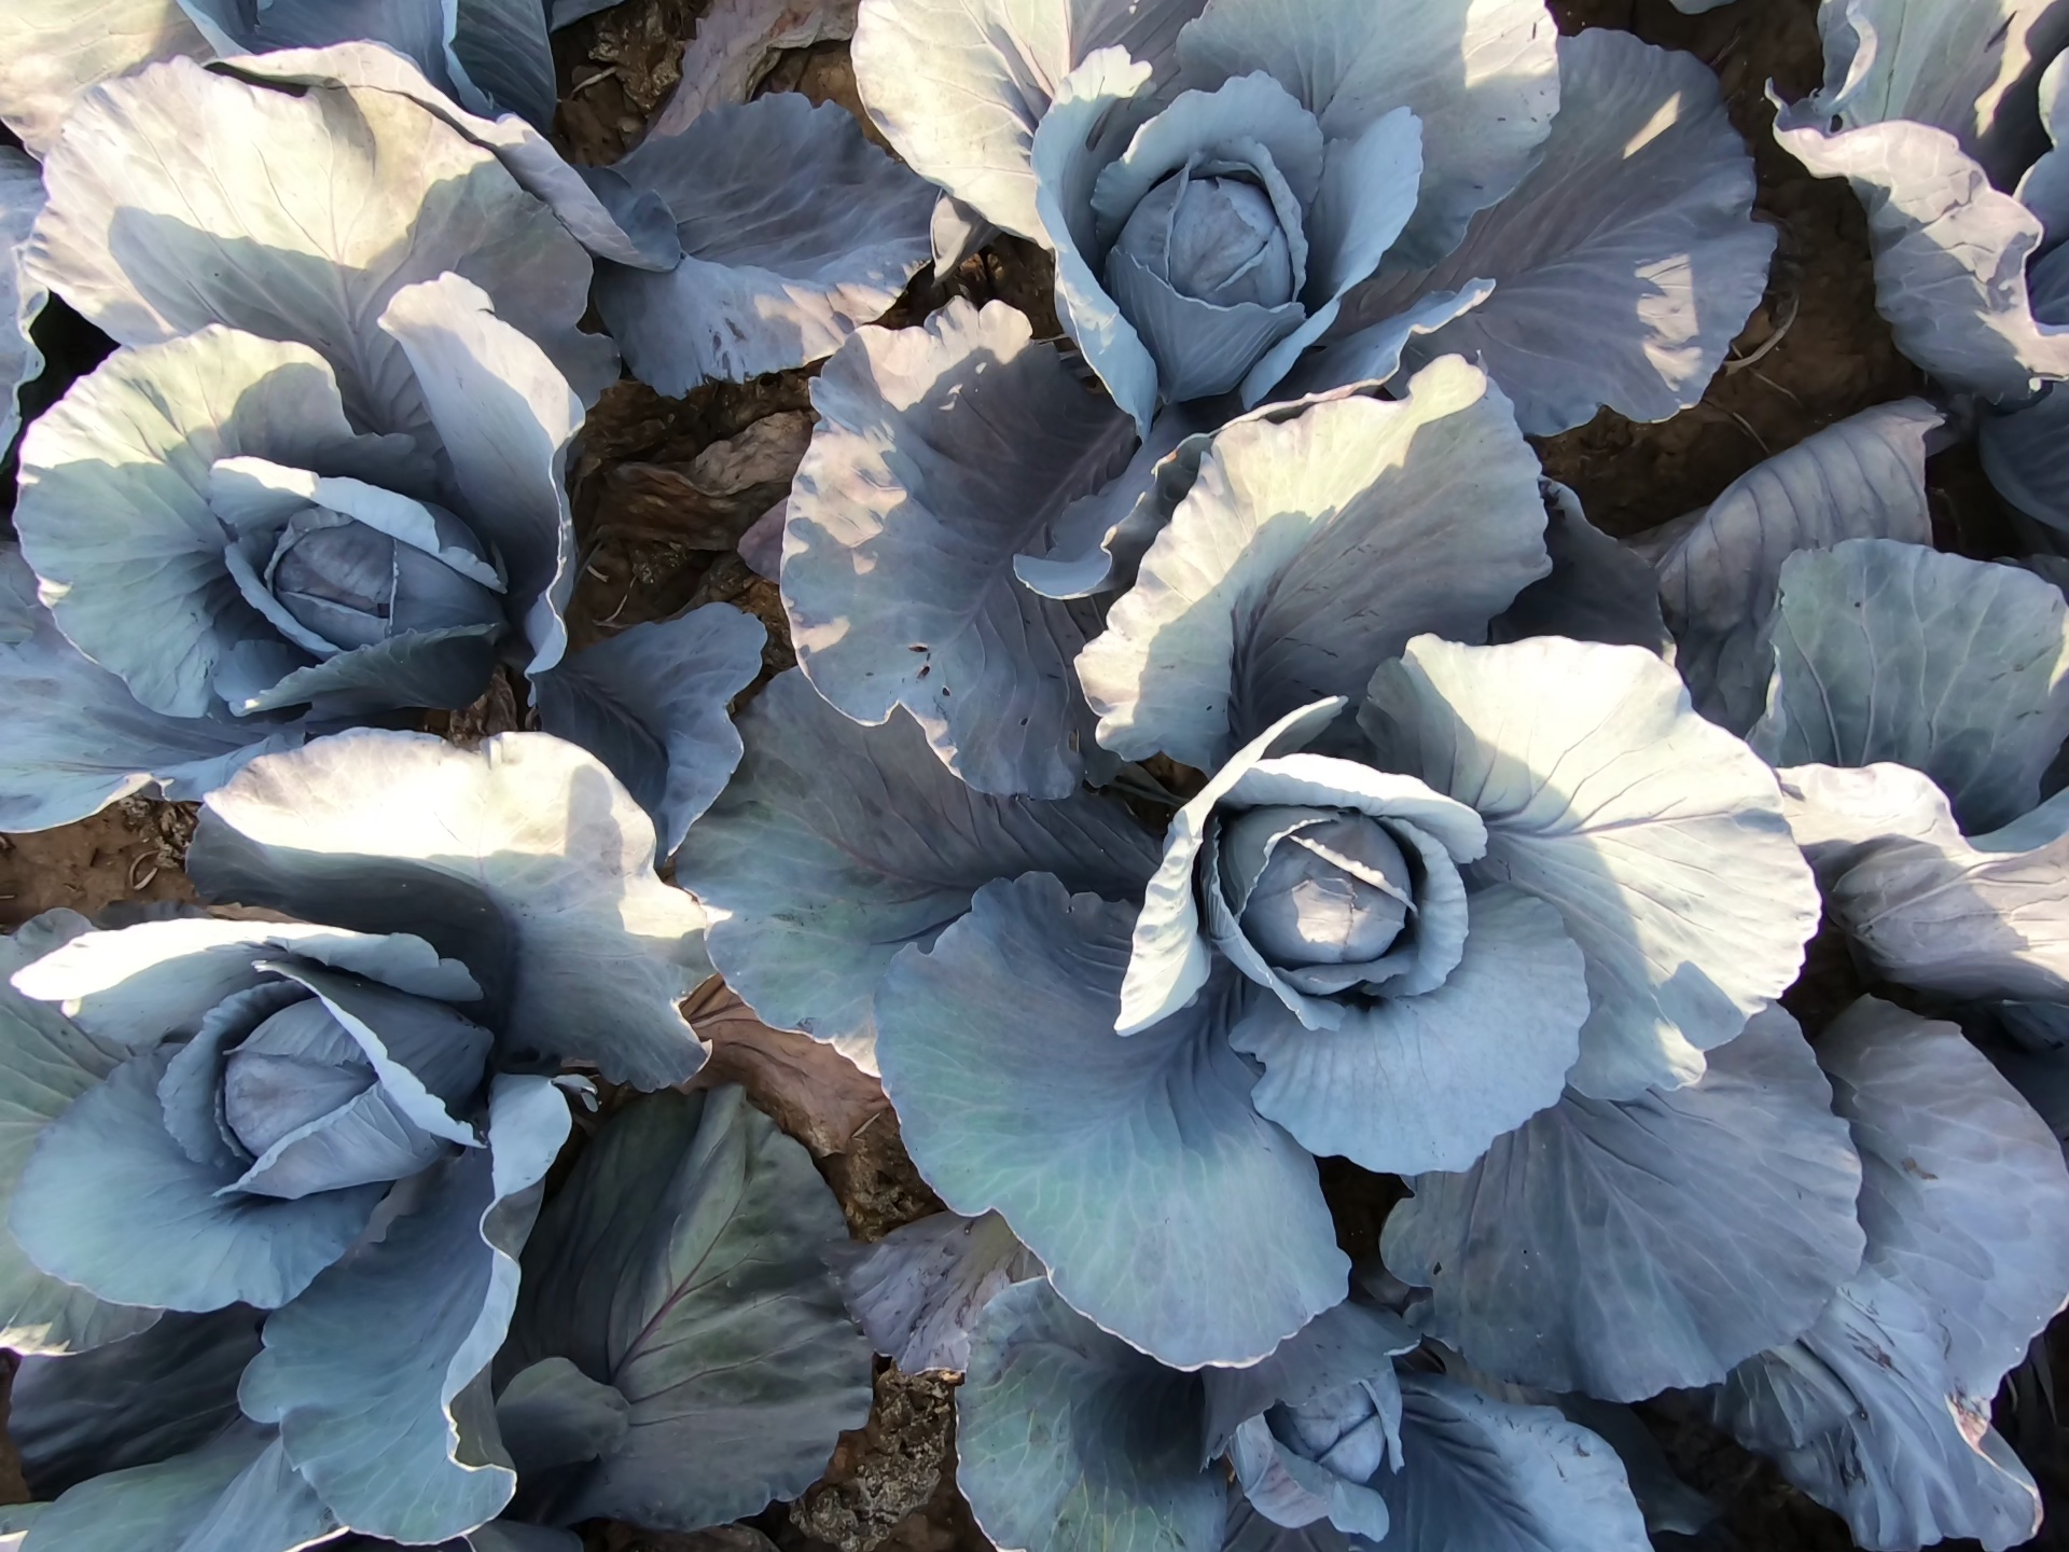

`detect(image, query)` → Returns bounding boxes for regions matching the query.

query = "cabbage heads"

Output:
[266,498,492,681]
[224,995,453,1191]
[1218,805,1419,975]
[1240,1329,1395,1507]
[260,2,538,139]
[1113,169,1300,365]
